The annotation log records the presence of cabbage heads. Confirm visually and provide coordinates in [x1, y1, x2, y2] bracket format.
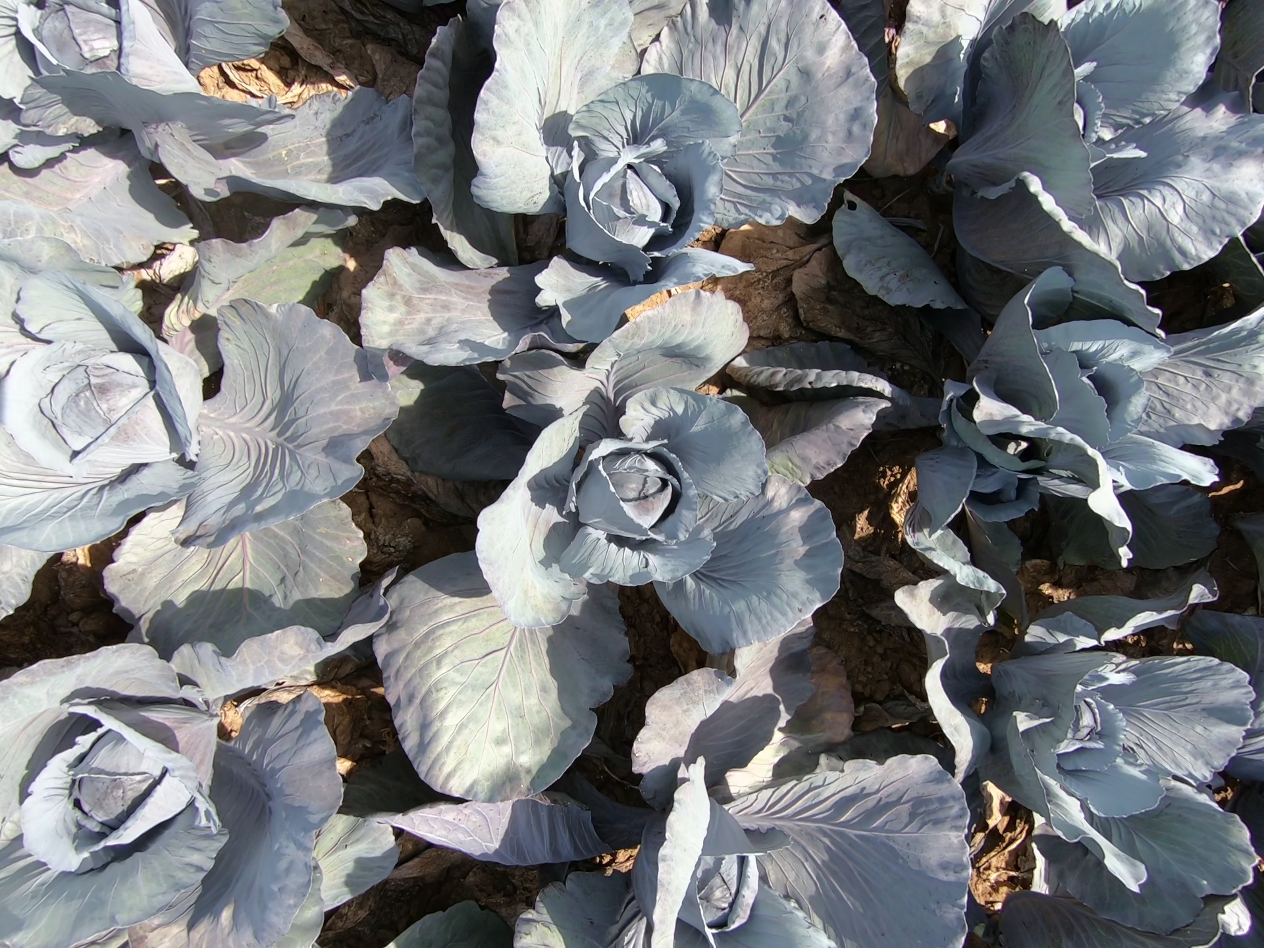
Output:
[650, 807, 757, 930]
[1006, 92, 1091, 159]
[583, 165, 668, 251]
[34, 2, 169, 121]
[584, 450, 674, 533]
[78, 715, 207, 829]
[1012, 674, 1098, 756]
[52, 352, 197, 460]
